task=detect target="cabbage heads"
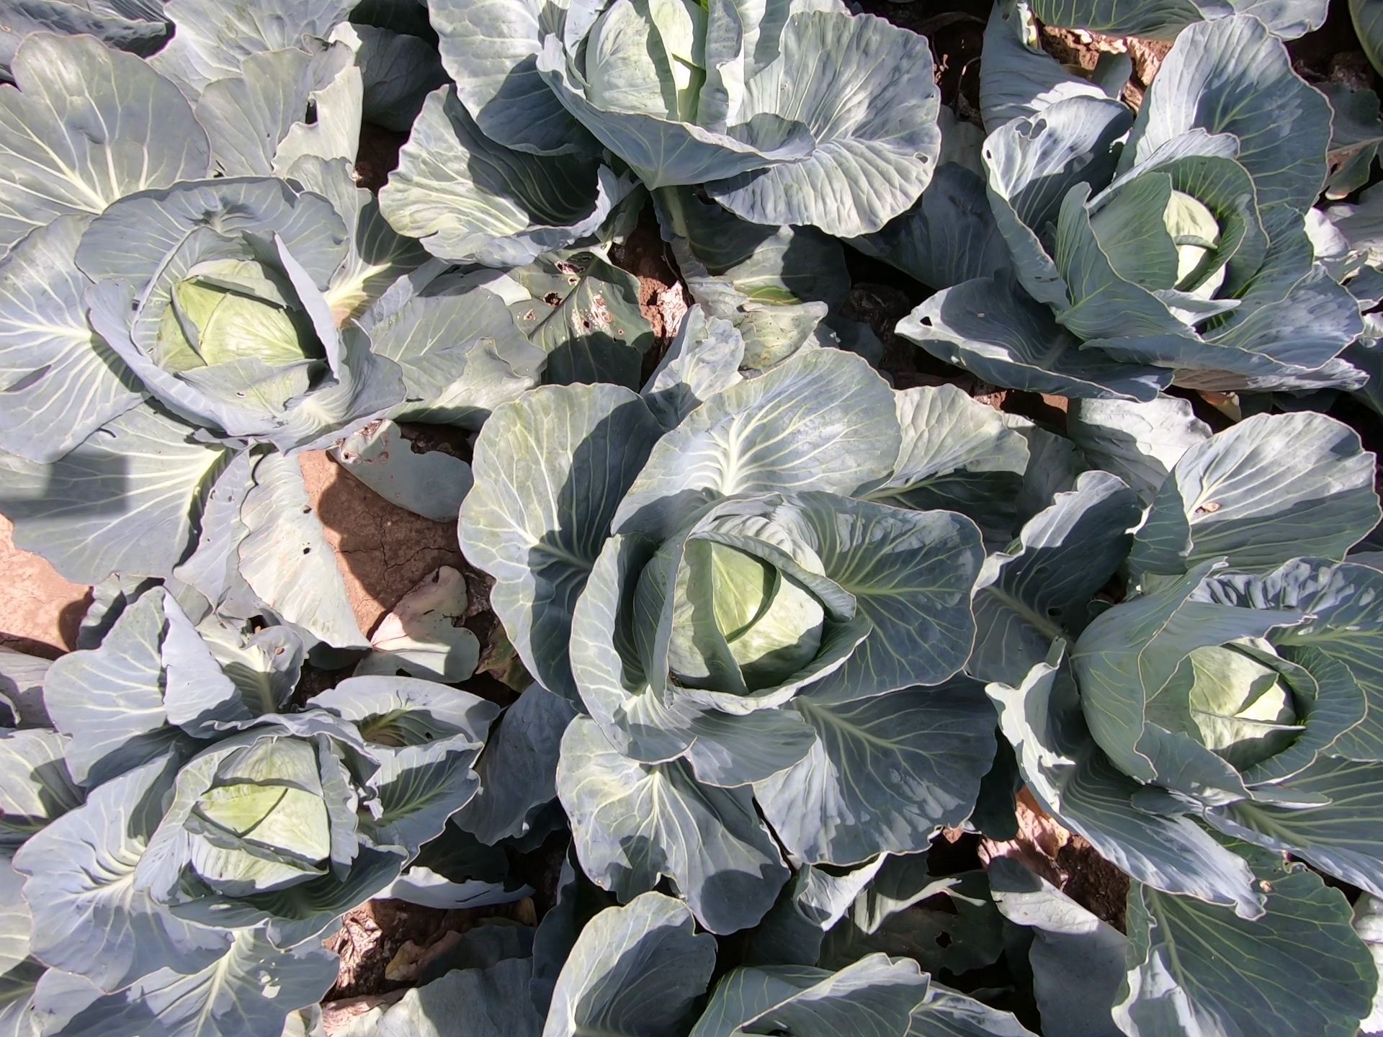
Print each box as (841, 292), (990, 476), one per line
(633, 516), (826, 698)
(169, 737), (359, 895)
(1113, 611), (1301, 781)
(140, 253), (334, 420)
(1073, 185), (1225, 328)
(584, 1), (729, 169)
